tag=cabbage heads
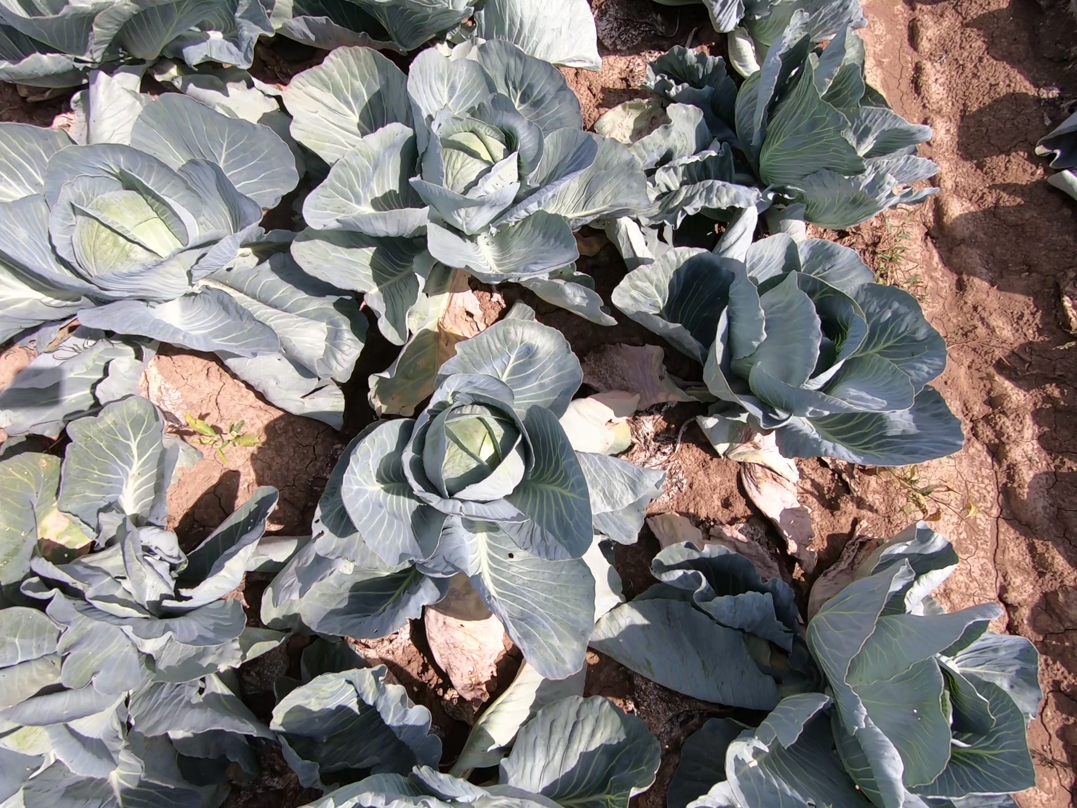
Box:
[427,127,516,232]
[66,188,203,301]
[3,642,126,760]
[418,399,531,508]
[843,653,952,778]
[737,305,831,389]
